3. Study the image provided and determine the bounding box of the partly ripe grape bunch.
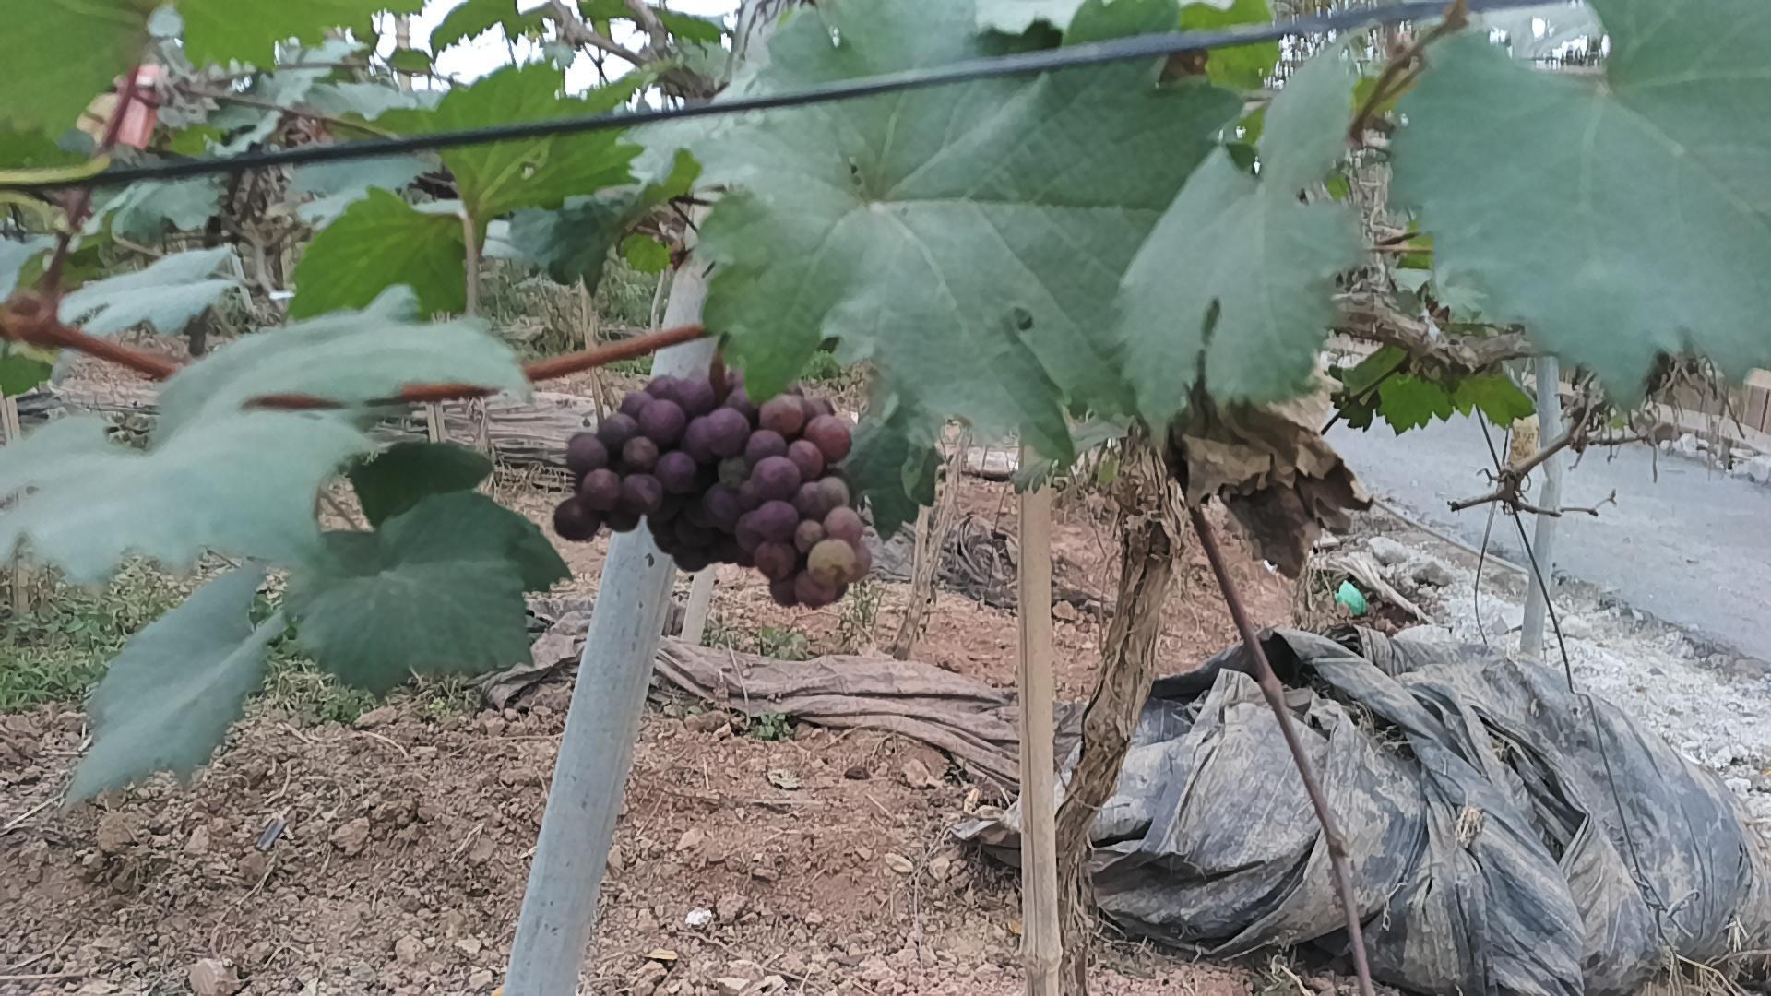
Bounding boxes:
[554,373,872,608]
